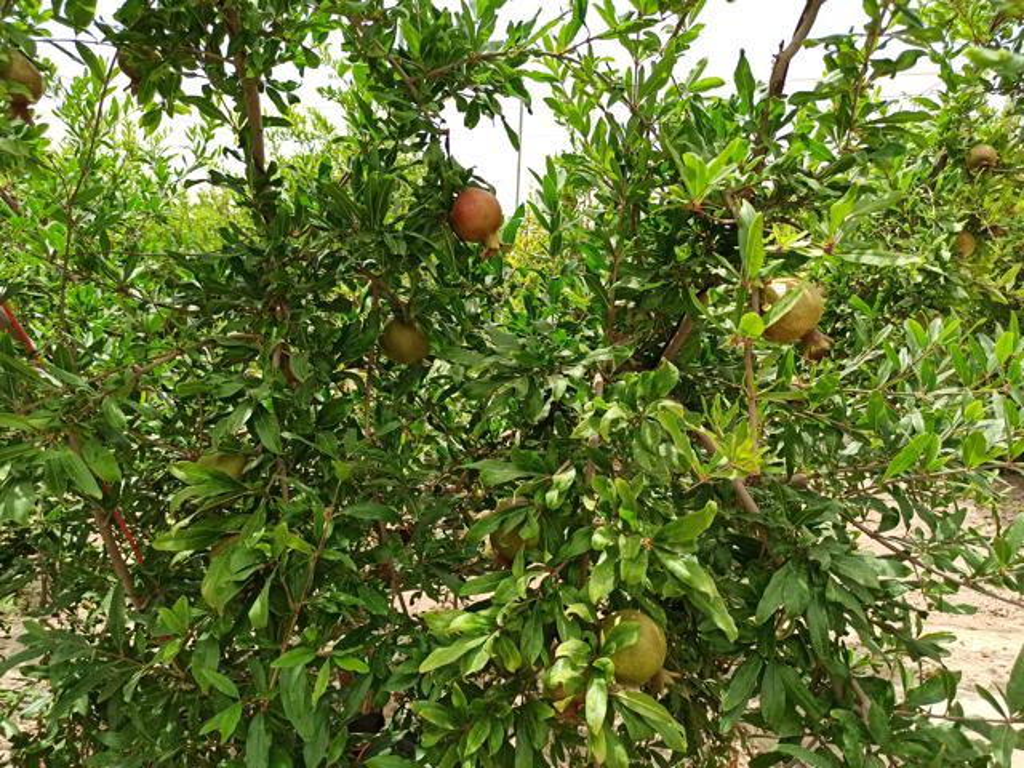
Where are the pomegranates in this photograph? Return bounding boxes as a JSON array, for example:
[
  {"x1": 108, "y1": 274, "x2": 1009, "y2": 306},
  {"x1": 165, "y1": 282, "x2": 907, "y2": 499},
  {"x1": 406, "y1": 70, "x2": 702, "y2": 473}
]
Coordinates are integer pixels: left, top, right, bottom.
[
  {"x1": 0, "y1": 50, "x2": 43, "y2": 126},
  {"x1": 760, "y1": 278, "x2": 835, "y2": 360},
  {"x1": 491, "y1": 531, "x2": 539, "y2": 562},
  {"x1": 381, "y1": 318, "x2": 427, "y2": 360},
  {"x1": 198, "y1": 454, "x2": 246, "y2": 478},
  {"x1": 450, "y1": 187, "x2": 512, "y2": 261},
  {"x1": 598, "y1": 606, "x2": 682, "y2": 694},
  {"x1": 957, "y1": 230, "x2": 978, "y2": 261},
  {"x1": 968, "y1": 142, "x2": 998, "y2": 173}
]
